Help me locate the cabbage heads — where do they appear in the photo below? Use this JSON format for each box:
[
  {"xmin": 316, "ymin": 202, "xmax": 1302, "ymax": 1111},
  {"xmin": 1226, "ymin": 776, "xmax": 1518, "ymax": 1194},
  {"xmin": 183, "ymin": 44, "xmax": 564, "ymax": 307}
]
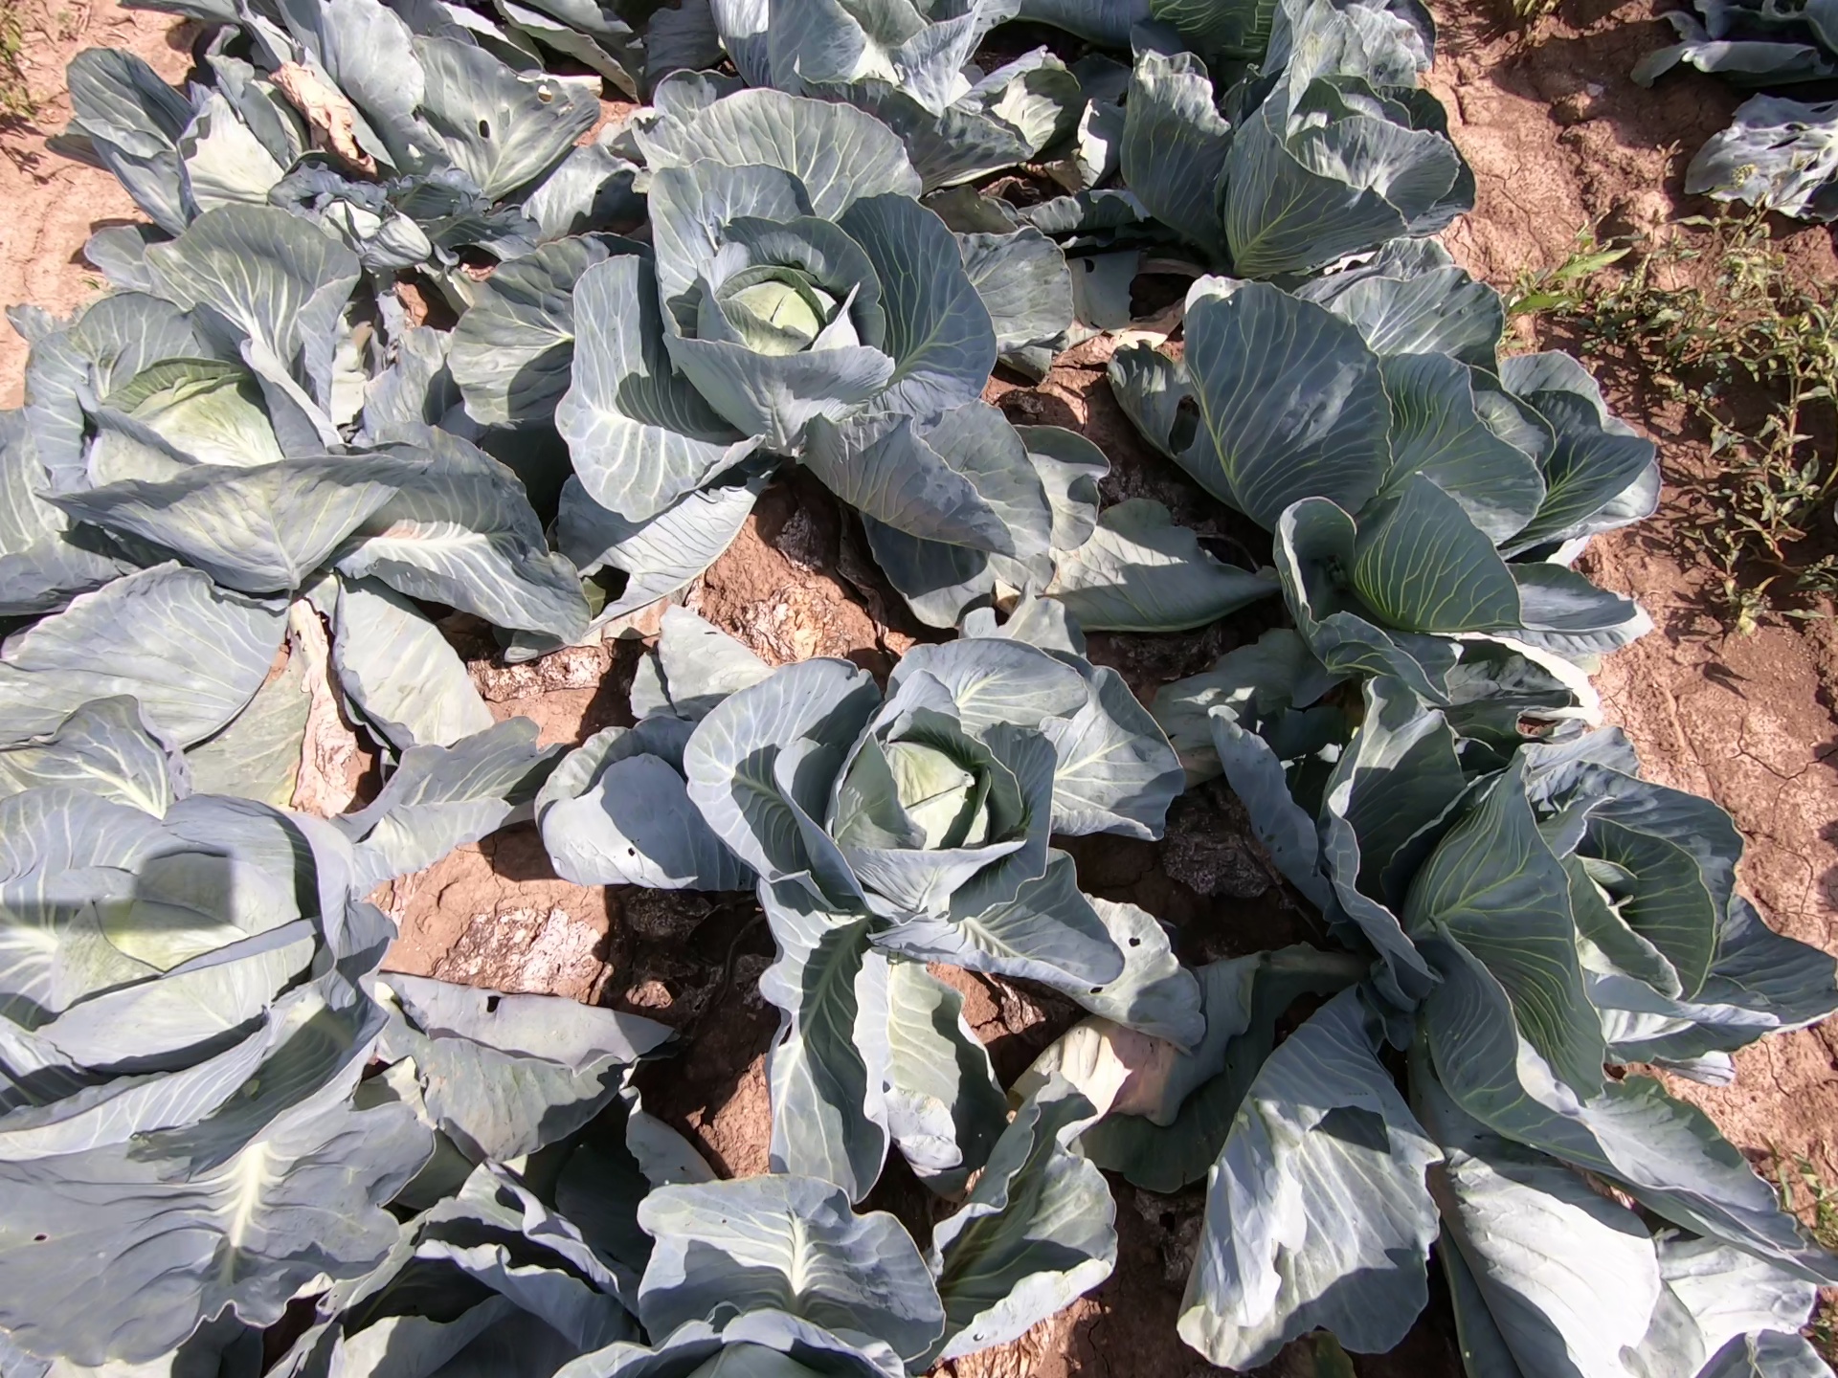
[
  {"xmin": 1461, "ymin": 860, "xmax": 1642, "ymax": 1042},
  {"xmin": 55, "ymin": 880, "xmax": 277, "ymax": 1073},
  {"xmin": 828, "ymin": 737, "xmax": 994, "ymax": 902},
  {"xmin": 710, "ymin": 275, "xmax": 860, "ymax": 423},
  {"xmin": 86, "ymin": 372, "xmax": 316, "ymax": 553}
]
